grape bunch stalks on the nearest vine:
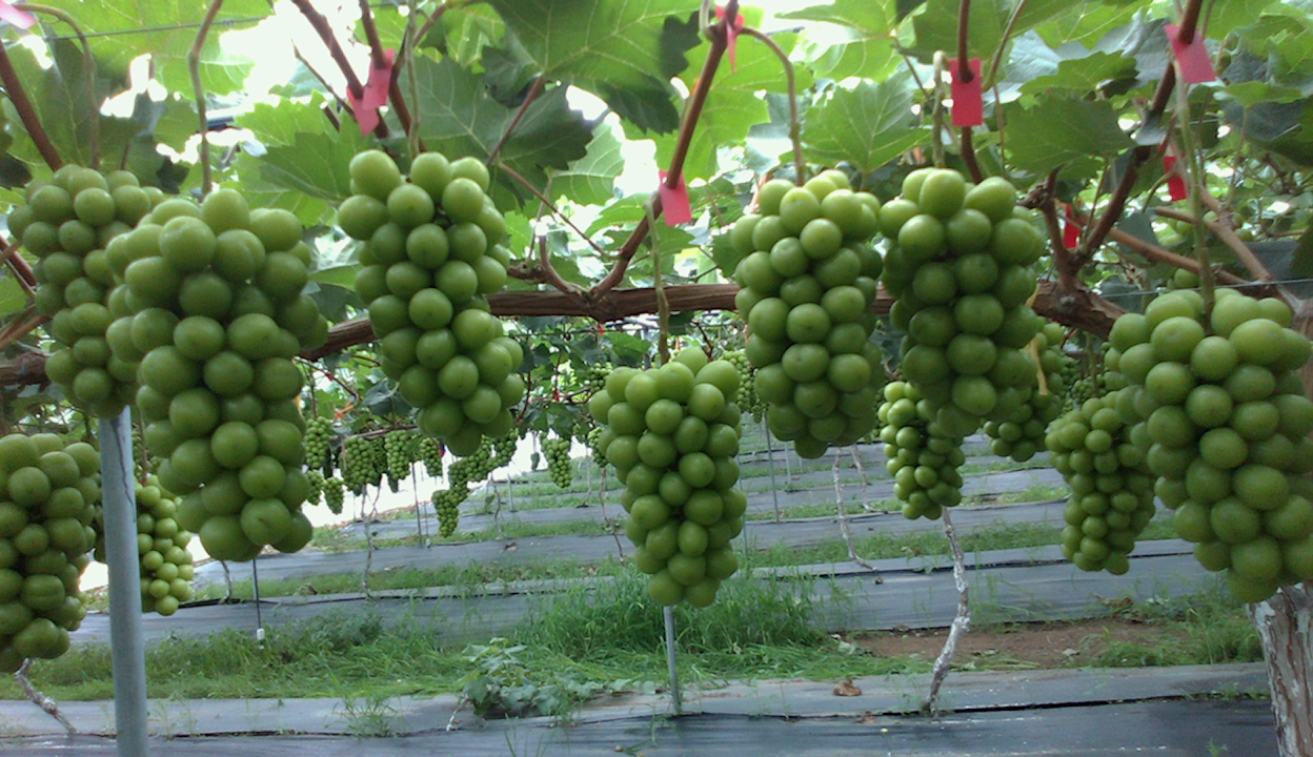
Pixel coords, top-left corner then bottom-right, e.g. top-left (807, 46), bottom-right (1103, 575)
top-left (189, 0), bottom-right (221, 195)
top-left (643, 190), bottom-right (671, 365)
top-left (734, 26), bottom-right (806, 186)
top-left (9, 1), bottom-right (99, 168)
top-left (406, 1), bottom-right (421, 158)
top-left (1172, 58), bottom-right (1216, 313)
top-left (932, 49), bottom-right (952, 169)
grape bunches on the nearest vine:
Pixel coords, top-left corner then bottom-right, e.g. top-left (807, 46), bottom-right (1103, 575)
top-left (588, 348), bottom-right (747, 608)
top-left (730, 168), bottom-right (886, 458)
top-left (104, 188), bottom-right (327, 558)
top-left (0, 433), bottom-right (99, 673)
top-left (6, 164), bottom-right (163, 421)
top-left (880, 167), bottom-right (1044, 436)
top-left (338, 151), bottom-right (525, 458)
top-left (1110, 288), bottom-right (1312, 600)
